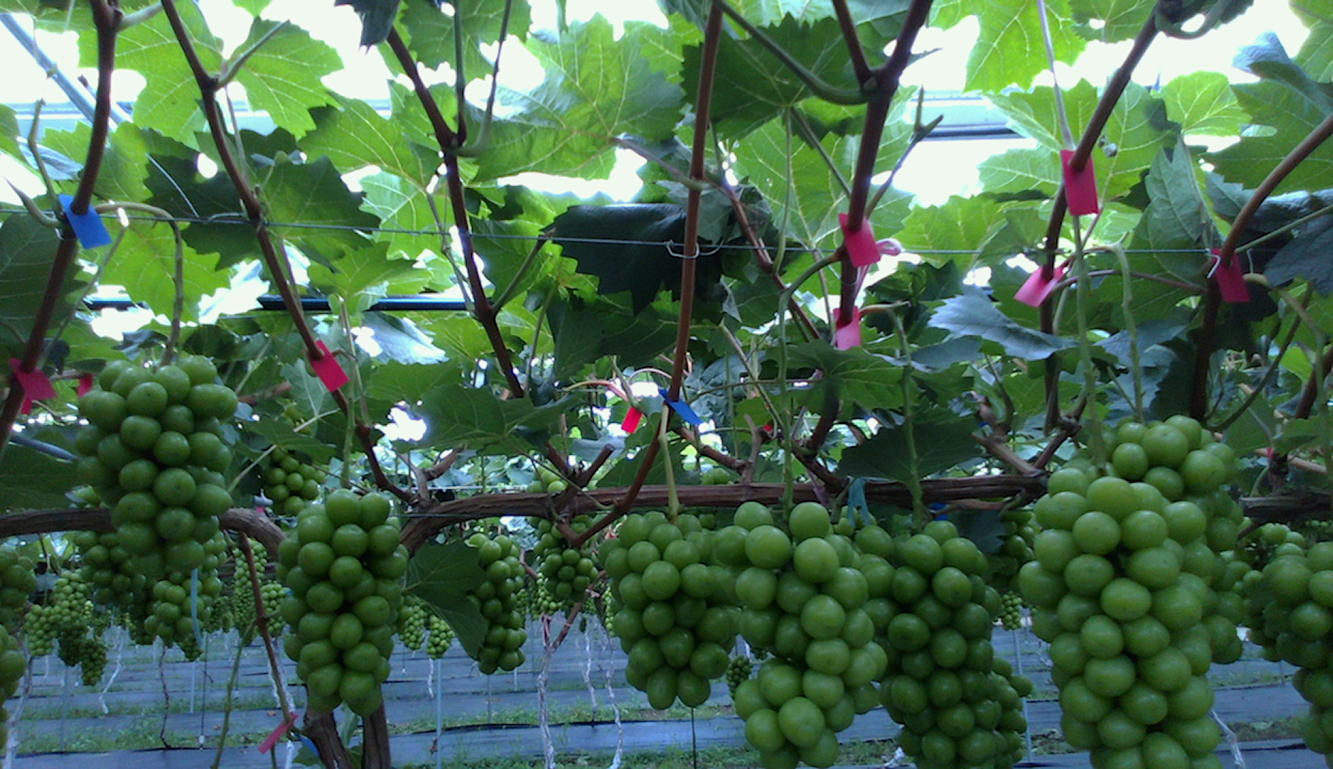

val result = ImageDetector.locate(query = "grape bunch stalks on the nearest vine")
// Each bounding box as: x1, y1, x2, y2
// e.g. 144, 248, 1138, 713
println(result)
1071, 217, 1107, 475
777, 252, 840, 514
336, 349, 358, 489
658, 405, 685, 523
1100, 232, 1144, 422
860, 302, 925, 532
93, 201, 185, 365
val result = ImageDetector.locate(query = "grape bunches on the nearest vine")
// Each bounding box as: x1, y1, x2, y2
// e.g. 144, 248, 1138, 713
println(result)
599, 512, 742, 711
857, 520, 1032, 768
711, 501, 887, 768
277, 488, 407, 716
1105, 415, 1246, 666
1018, 456, 1223, 768
76, 355, 239, 576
